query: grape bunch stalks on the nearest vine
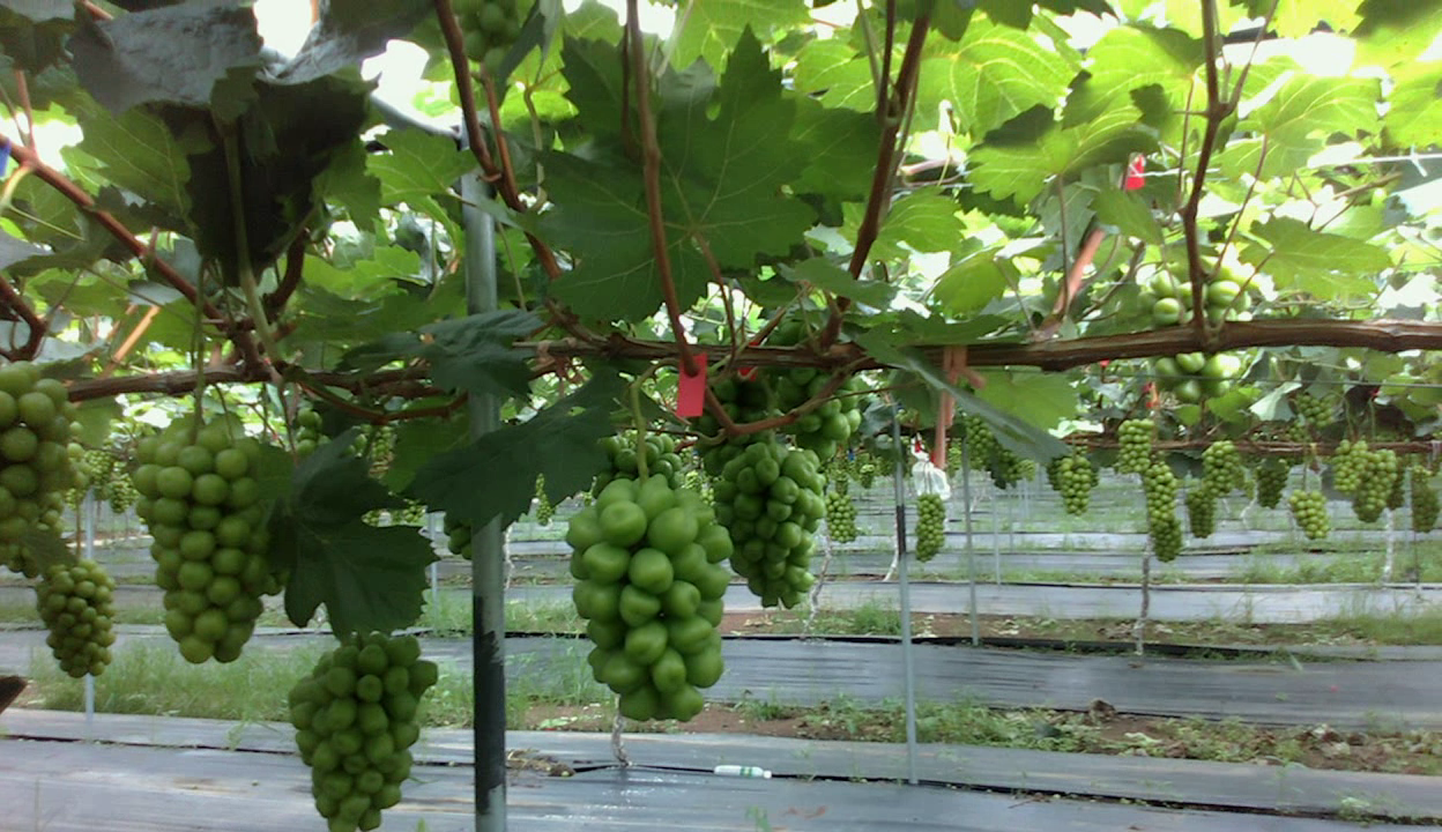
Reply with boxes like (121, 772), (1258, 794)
(276, 378), (299, 469)
(187, 257), (208, 445)
(629, 358), (678, 488)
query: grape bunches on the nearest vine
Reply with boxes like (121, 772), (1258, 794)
(133, 426), (273, 664)
(1, 364), (70, 555)
(564, 474), (735, 722)
(287, 630), (439, 831)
